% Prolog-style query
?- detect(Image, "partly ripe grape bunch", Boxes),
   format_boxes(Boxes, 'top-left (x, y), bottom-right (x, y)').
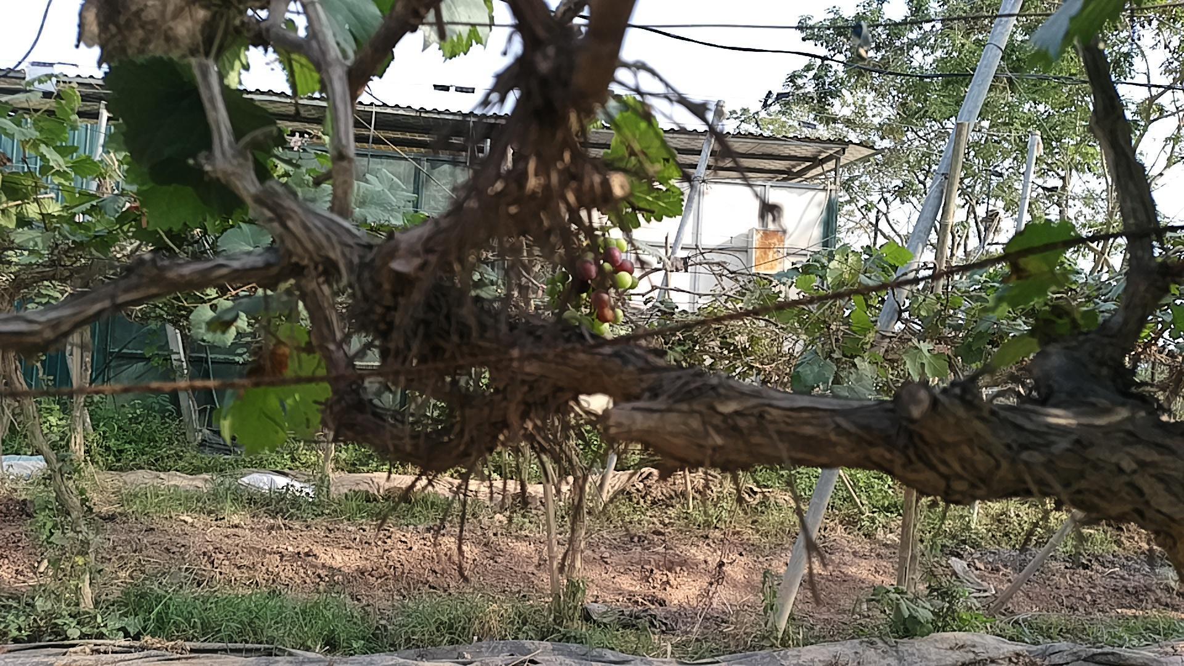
top-left (546, 237), bottom-right (638, 336)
